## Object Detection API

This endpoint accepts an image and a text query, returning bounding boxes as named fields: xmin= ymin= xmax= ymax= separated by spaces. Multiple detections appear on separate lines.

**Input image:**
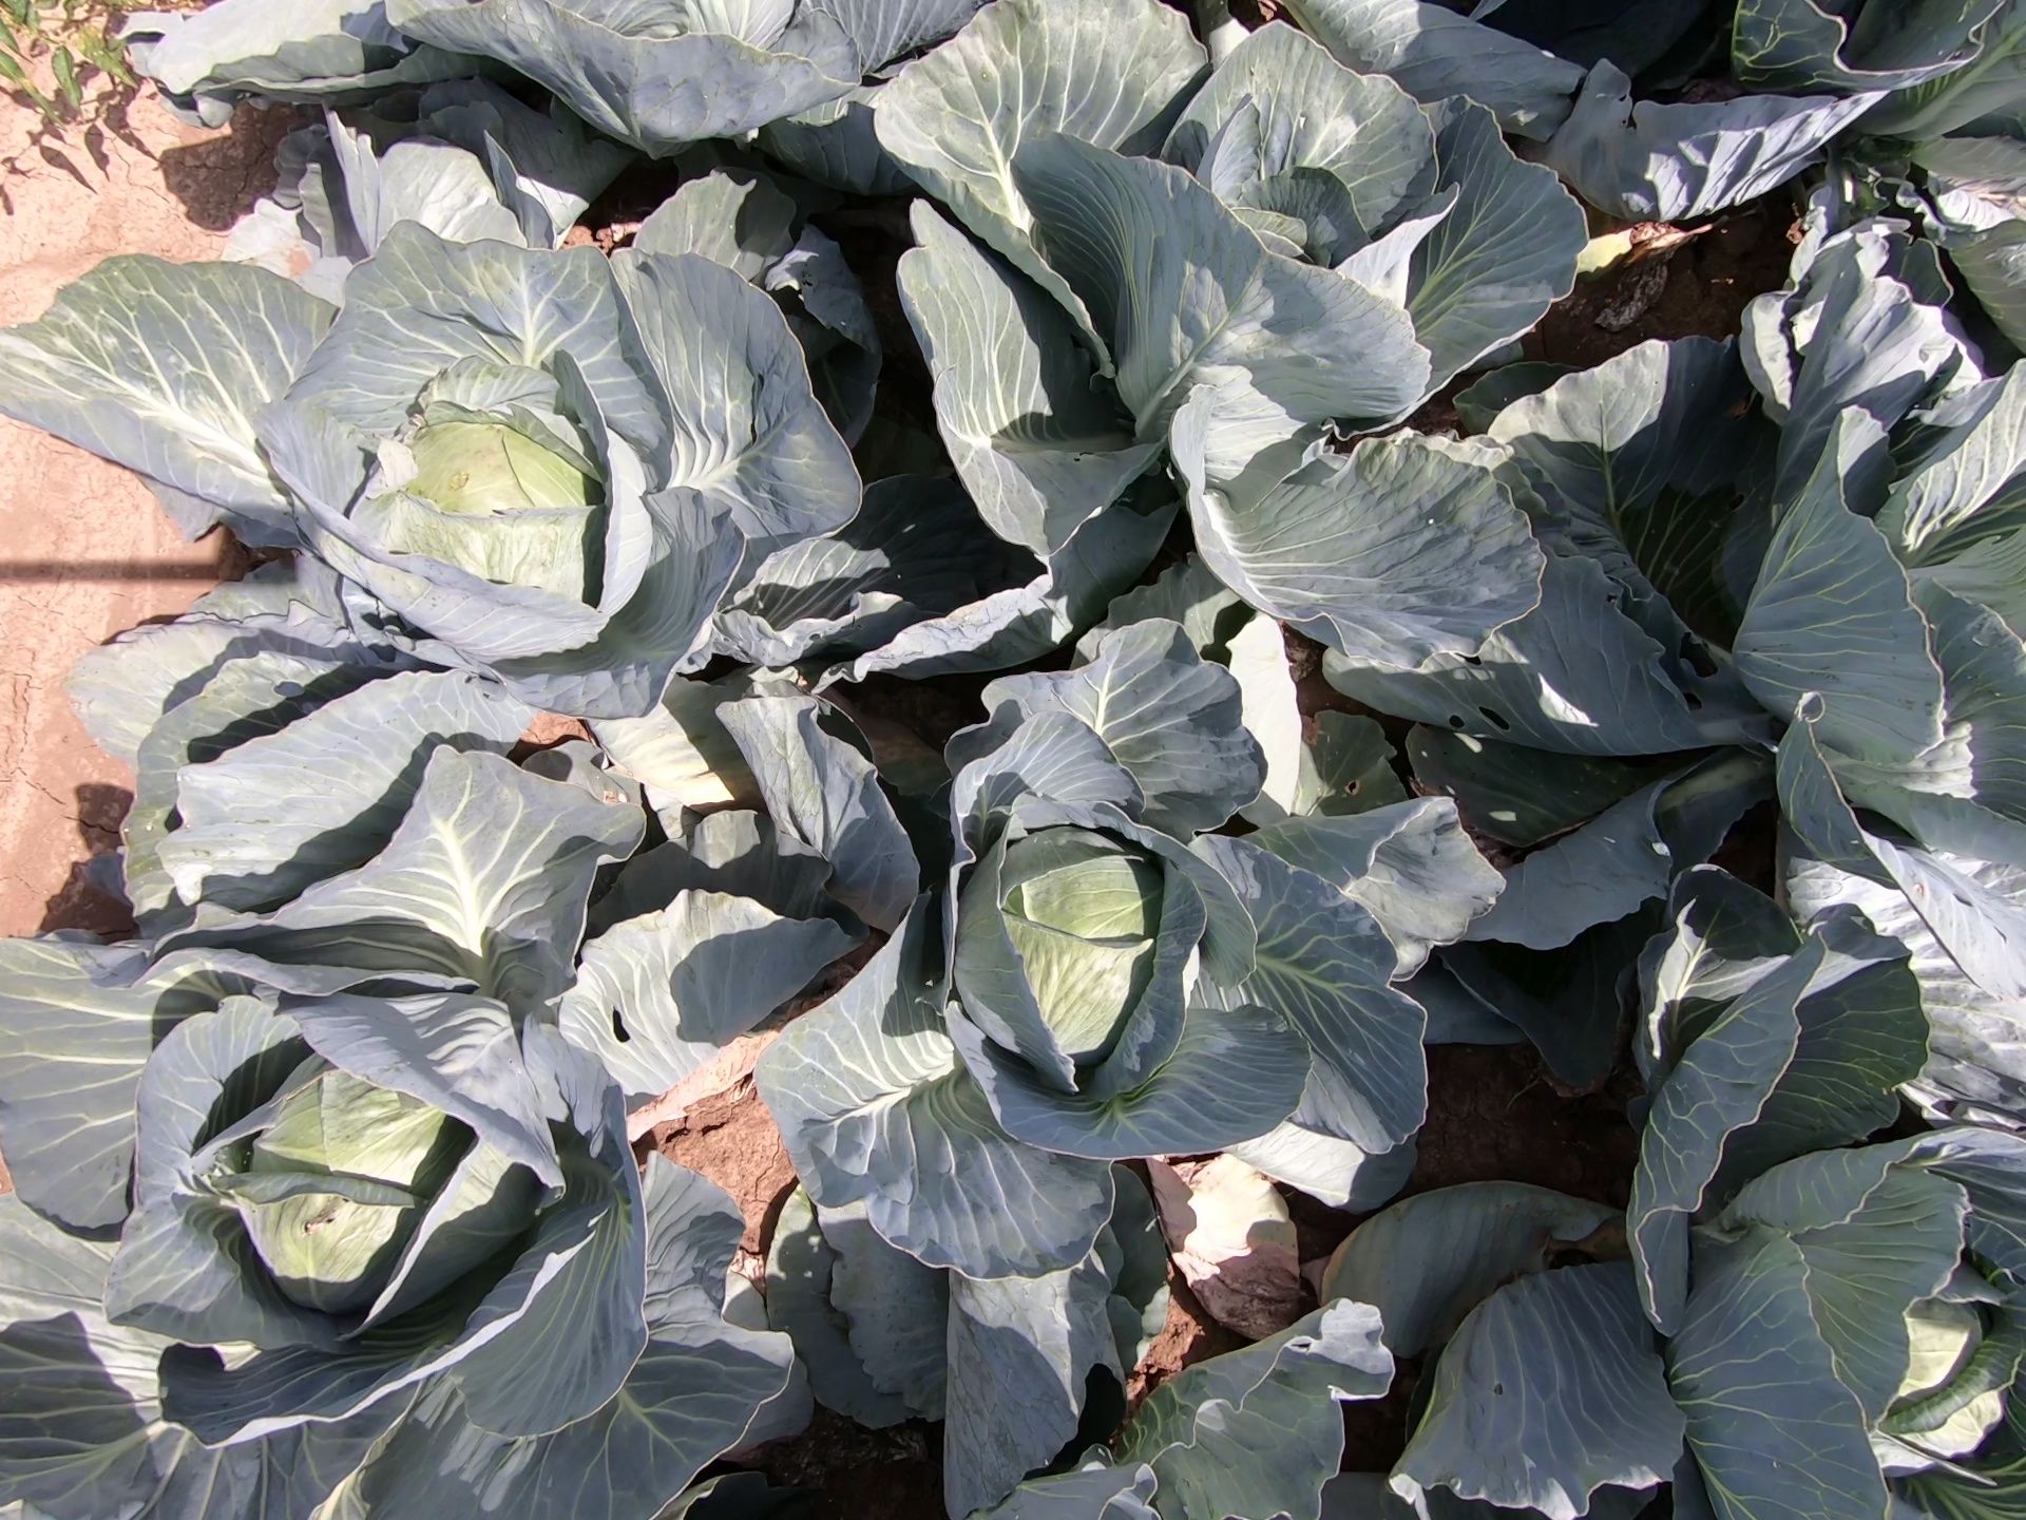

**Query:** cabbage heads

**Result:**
xmin=1127 ymin=234 xmax=1305 ymax=431
xmin=1777 ymin=1230 xmax=2011 ymax=1475
xmin=342 ymin=385 xmax=647 ymax=654
xmin=951 ymin=826 xmax=1194 ymax=1068
xmin=224 ymin=1035 xmax=543 ymax=1324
